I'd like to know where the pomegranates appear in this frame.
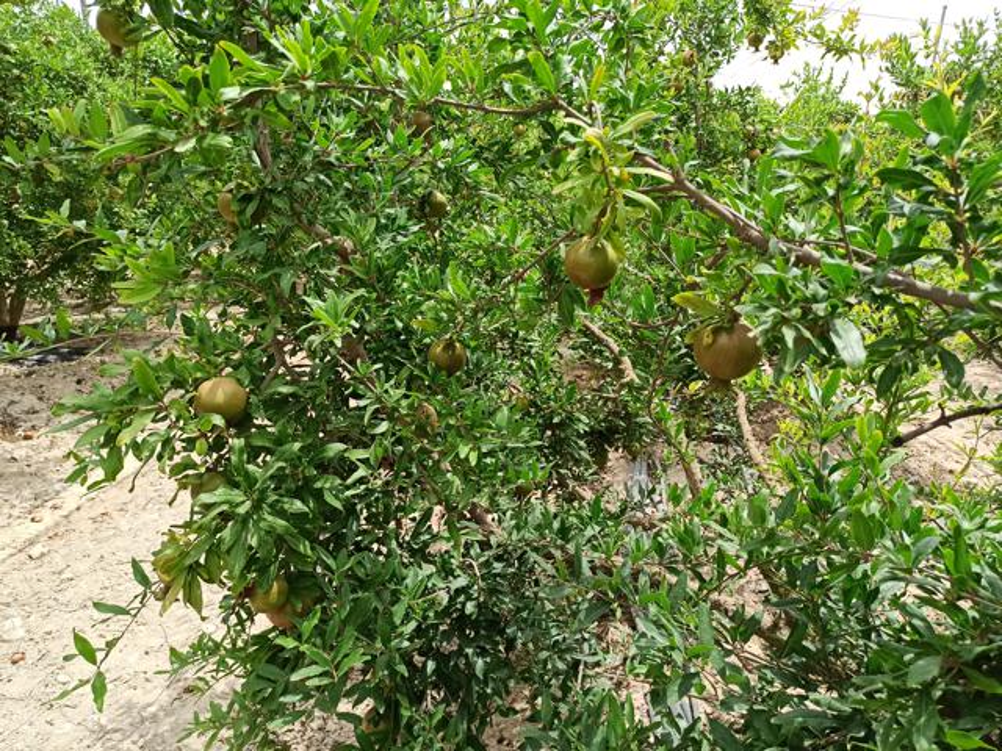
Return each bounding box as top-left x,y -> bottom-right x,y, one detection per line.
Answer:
218,191 -> 236,222
565,235 -> 618,307
412,111 -> 431,135
416,401 -> 440,427
266,599 -> 296,627
694,322 -> 761,402
94,6 -> 127,58
189,471 -> 227,499
194,375 -> 247,424
249,576 -> 290,613
429,340 -> 468,377
431,191 -> 448,216
362,706 -> 377,734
